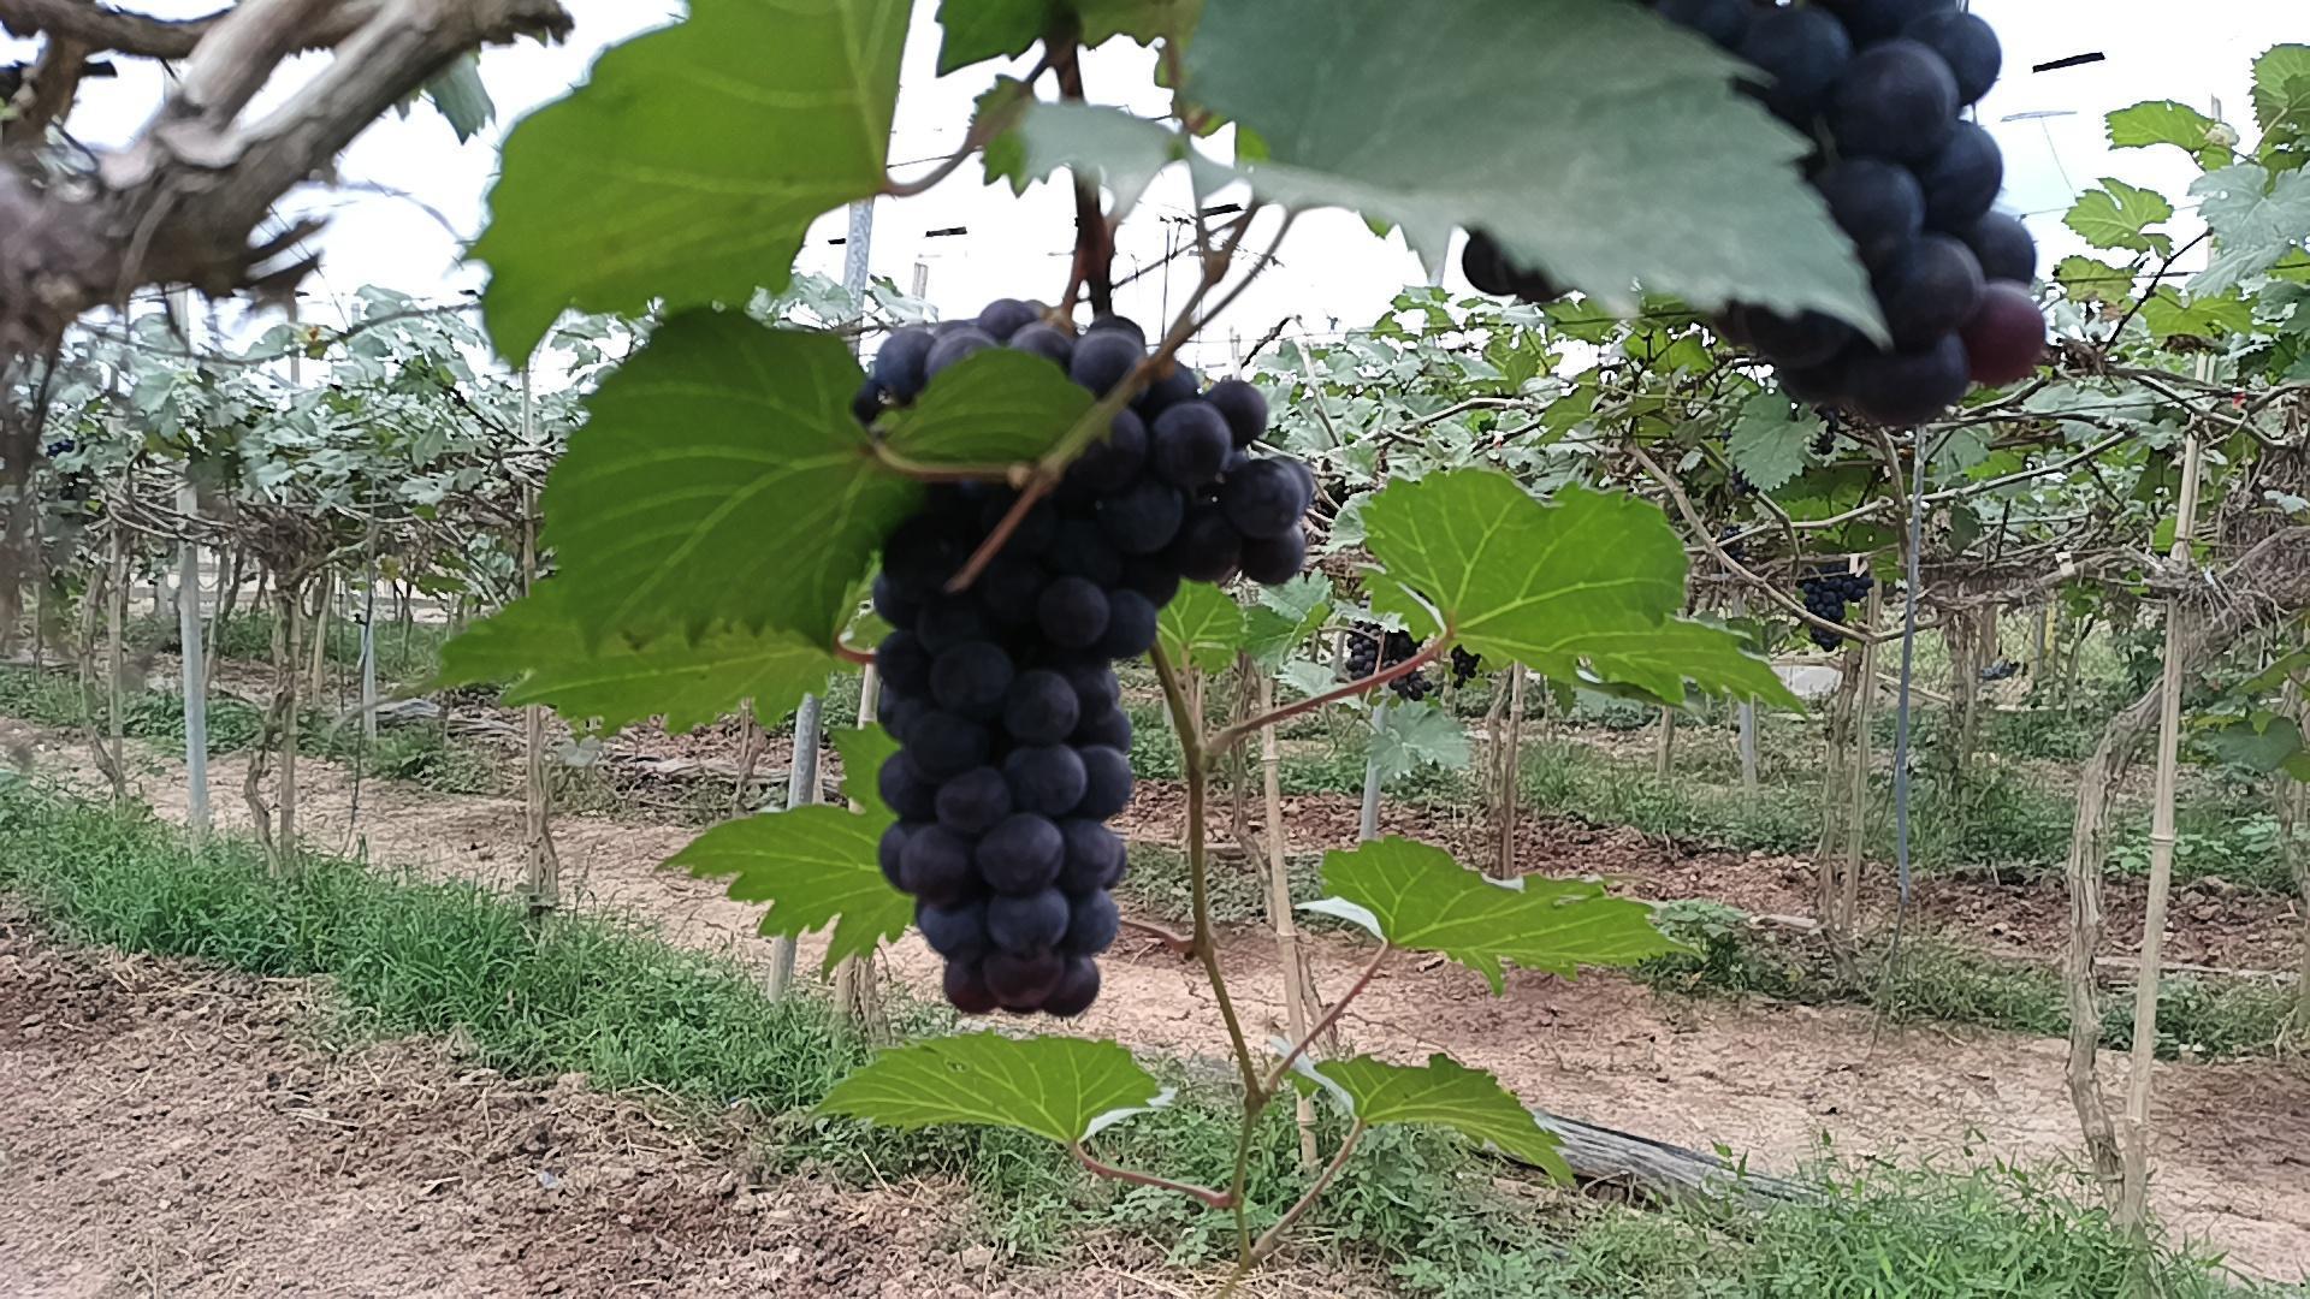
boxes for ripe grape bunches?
[1450,643,1481,690]
[1345,621,1434,701]
[854,298,1315,1018]
[1713,523,1748,573]
[1649,0,2044,426]
[1795,564,1874,652]
[1461,230,1570,303]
